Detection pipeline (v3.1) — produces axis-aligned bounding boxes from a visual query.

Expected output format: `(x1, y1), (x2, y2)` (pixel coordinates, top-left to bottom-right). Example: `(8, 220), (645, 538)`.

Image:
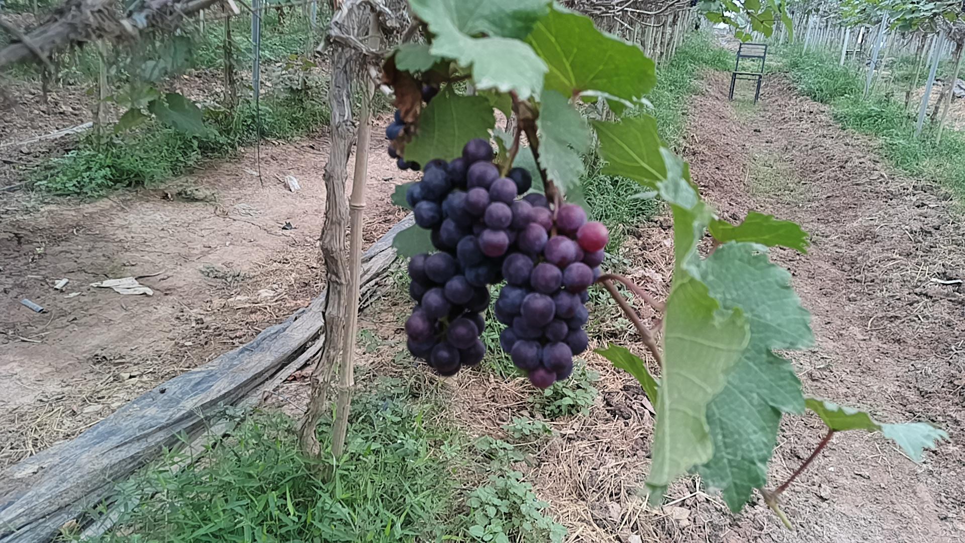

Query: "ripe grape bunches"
(386, 70), (444, 171)
(495, 203), (608, 388)
(405, 138), (546, 376)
